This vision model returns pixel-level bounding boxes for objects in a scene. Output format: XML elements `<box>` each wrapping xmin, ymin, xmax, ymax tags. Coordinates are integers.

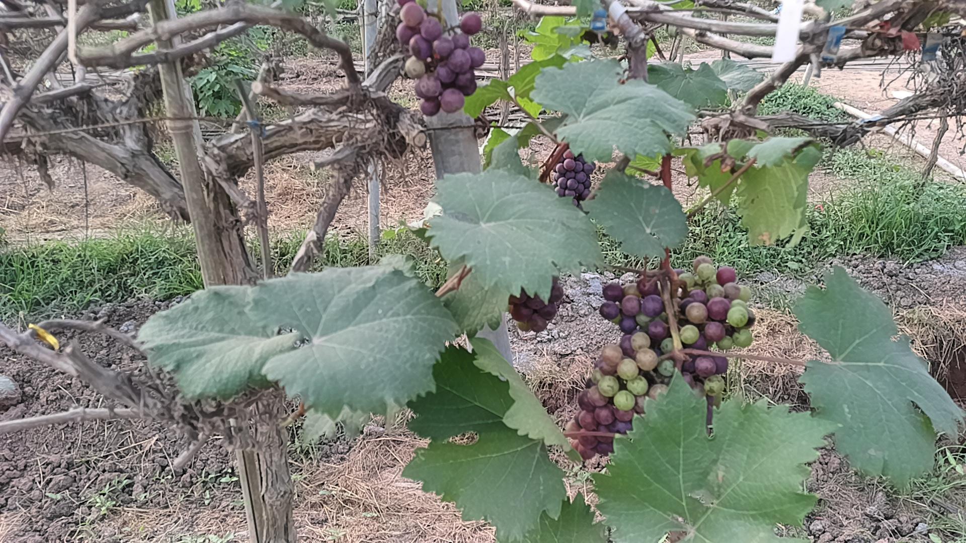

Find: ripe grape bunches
<box><xmin>395</xmin><ymin>0</ymin><xmax>485</xmax><ymax>116</ymax></box>
<box><xmin>553</xmin><ymin>149</ymin><xmax>595</xmax><ymax>209</ymax></box>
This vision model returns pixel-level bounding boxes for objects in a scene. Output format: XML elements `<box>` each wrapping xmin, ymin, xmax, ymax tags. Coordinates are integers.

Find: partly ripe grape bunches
<box><xmin>509</xmin><ymin>277</ymin><xmax>564</xmax><ymax>332</ymax></box>
<box><xmin>566</xmin><ymin>255</ymin><xmax>754</xmax><ymax>459</ymax></box>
